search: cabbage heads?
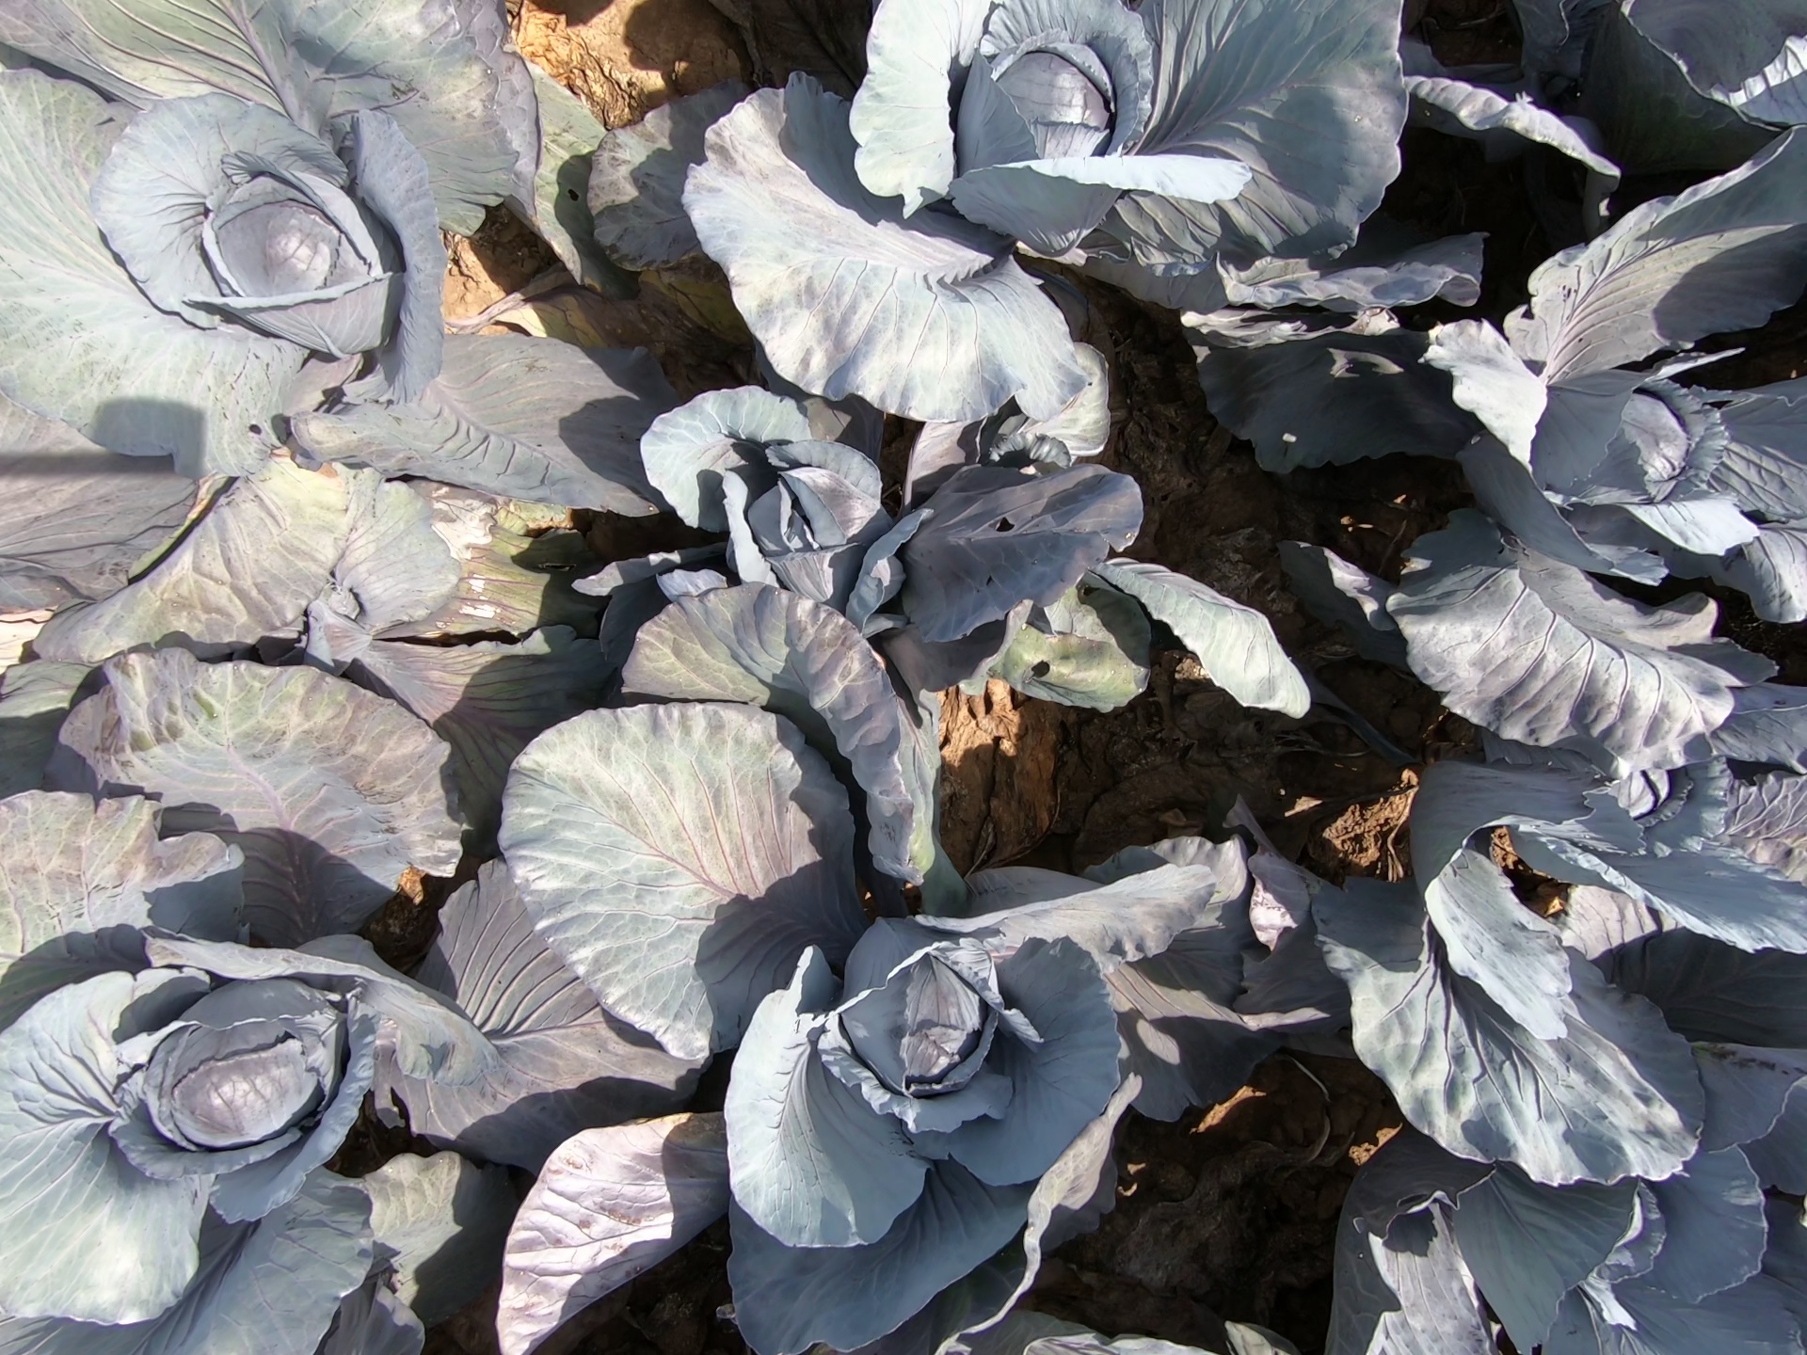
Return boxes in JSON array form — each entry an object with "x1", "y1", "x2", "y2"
[
  {"x1": 758, "y1": 476, "x2": 888, "y2": 583},
  {"x1": 1501, "y1": 706, "x2": 1670, "y2": 834},
  {"x1": 1566, "y1": 391, "x2": 1689, "y2": 514},
  {"x1": 842, "y1": 927, "x2": 990, "y2": 1089},
  {"x1": 977, "y1": 43, "x2": 1116, "y2": 183},
  {"x1": 204, "y1": 168, "x2": 399, "y2": 356},
  {"x1": 144, "y1": 985, "x2": 342, "y2": 1152}
]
